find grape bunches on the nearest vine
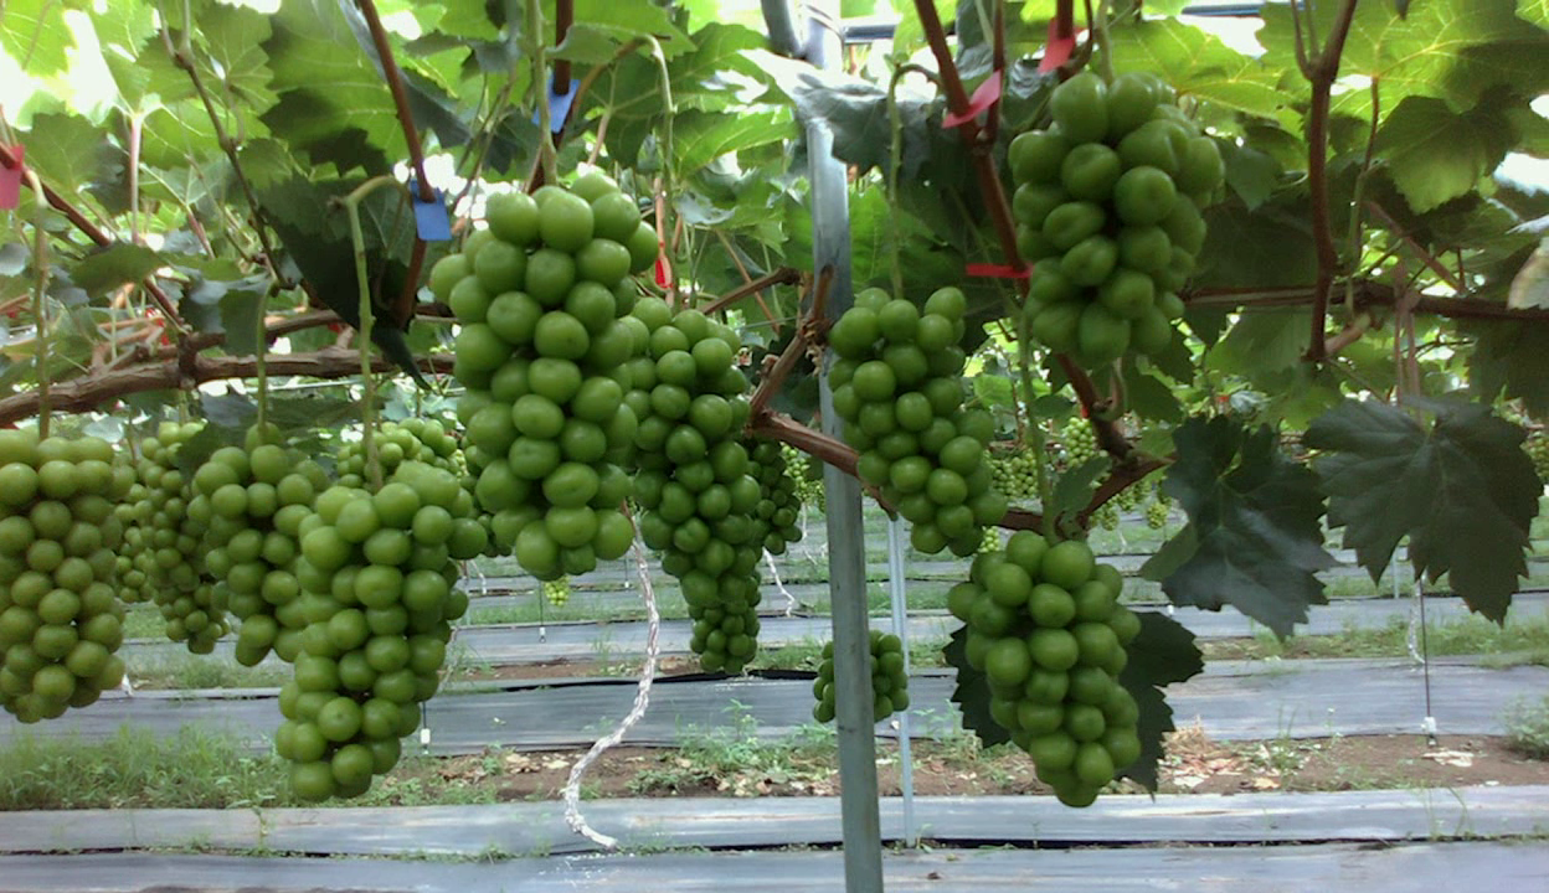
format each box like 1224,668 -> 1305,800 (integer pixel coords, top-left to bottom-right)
427,174 -> 659,583
618,298 -> 761,609
827,287 -> 1007,559
1007,71 -> 1228,371
185,422 -> 330,669
0,424 -> 134,723
946,531 -> 1141,807
276,463 -> 487,802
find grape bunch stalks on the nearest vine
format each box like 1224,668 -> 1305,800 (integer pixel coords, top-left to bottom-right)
524,1 -> 559,186
330,176 -> 413,494
1095,0 -> 1115,87
617,32 -> 683,315
886,63 -> 943,301
24,171 -> 50,442
257,280 -> 279,443
1017,313 -> 1059,547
